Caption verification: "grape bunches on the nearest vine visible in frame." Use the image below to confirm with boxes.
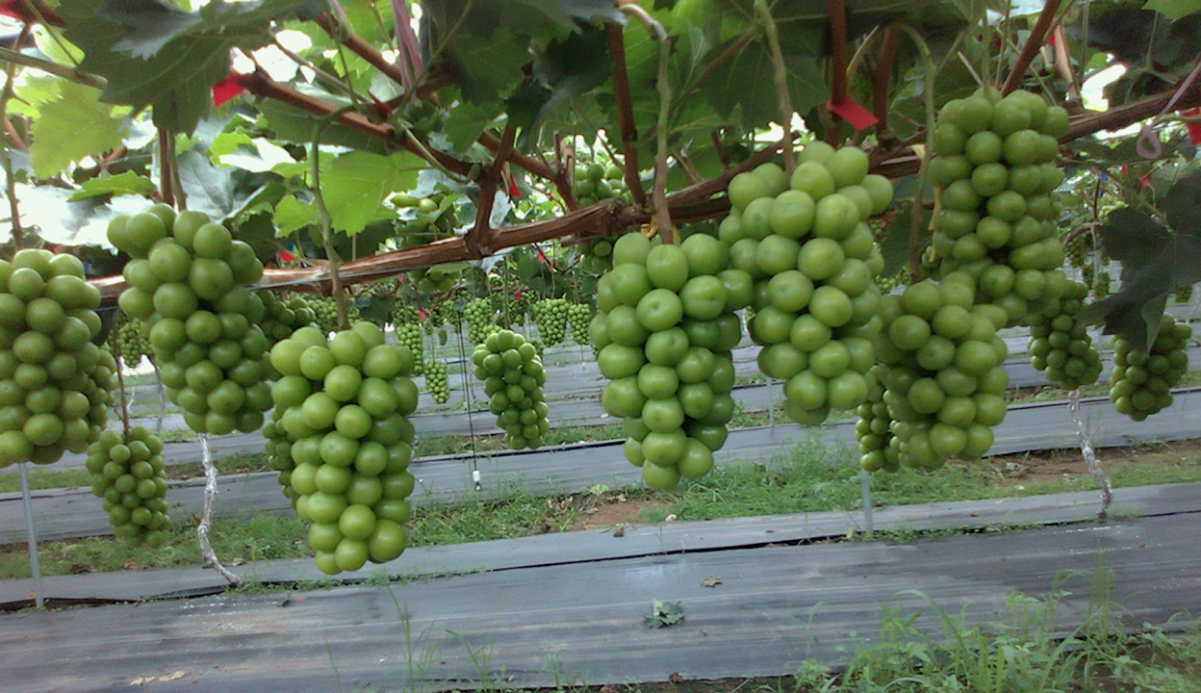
[721,141,892,426]
[877,271,1009,471]
[586,232,754,490]
[270,321,419,575]
[0,249,103,466]
[932,89,1065,326]
[106,204,270,435]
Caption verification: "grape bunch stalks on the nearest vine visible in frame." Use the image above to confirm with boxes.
[311,107,353,328]
[0,61,27,251]
[628,5,674,244]
[754,2,793,172]
[846,20,935,281]
[166,132,187,209]
[982,14,991,98]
